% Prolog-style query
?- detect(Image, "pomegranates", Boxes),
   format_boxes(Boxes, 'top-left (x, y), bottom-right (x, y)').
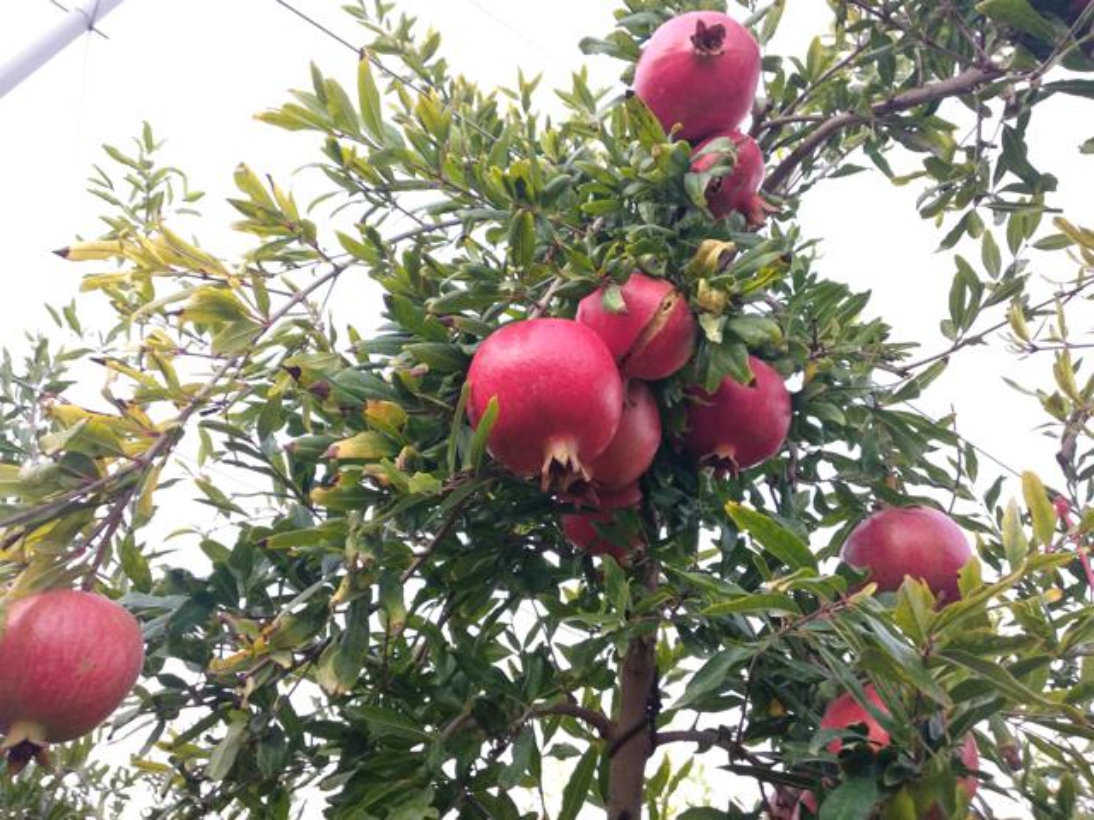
top-left (839, 504), bottom-right (974, 610)
top-left (0, 589), bottom-right (144, 758)
top-left (689, 128), bottom-right (781, 225)
top-left (557, 482), bottom-right (650, 560)
top-left (668, 355), bottom-right (795, 477)
top-left (467, 318), bottom-right (622, 492)
top-left (556, 381), bottom-right (663, 511)
top-left (632, 10), bottom-right (761, 149)
top-left (573, 272), bottom-right (699, 413)
top-left (820, 682), bottom-right (979, 799)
